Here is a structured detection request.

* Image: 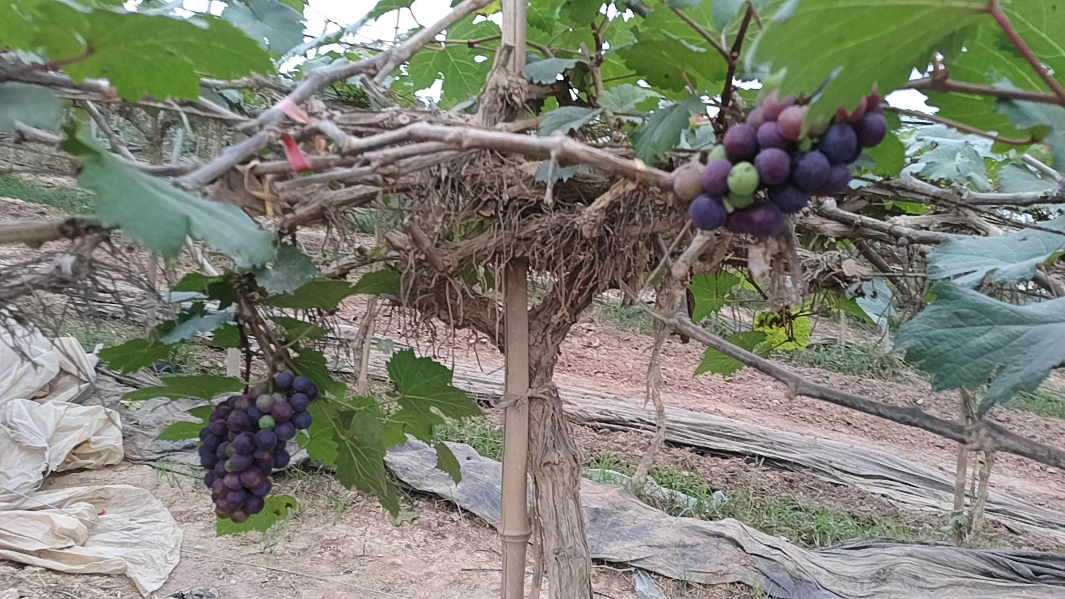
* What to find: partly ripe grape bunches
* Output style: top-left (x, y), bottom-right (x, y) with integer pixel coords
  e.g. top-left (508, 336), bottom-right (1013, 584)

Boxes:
top-left (673, 87), bottom-right (886, 238)
top-left (199, 370), bottom-right (318, 524)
